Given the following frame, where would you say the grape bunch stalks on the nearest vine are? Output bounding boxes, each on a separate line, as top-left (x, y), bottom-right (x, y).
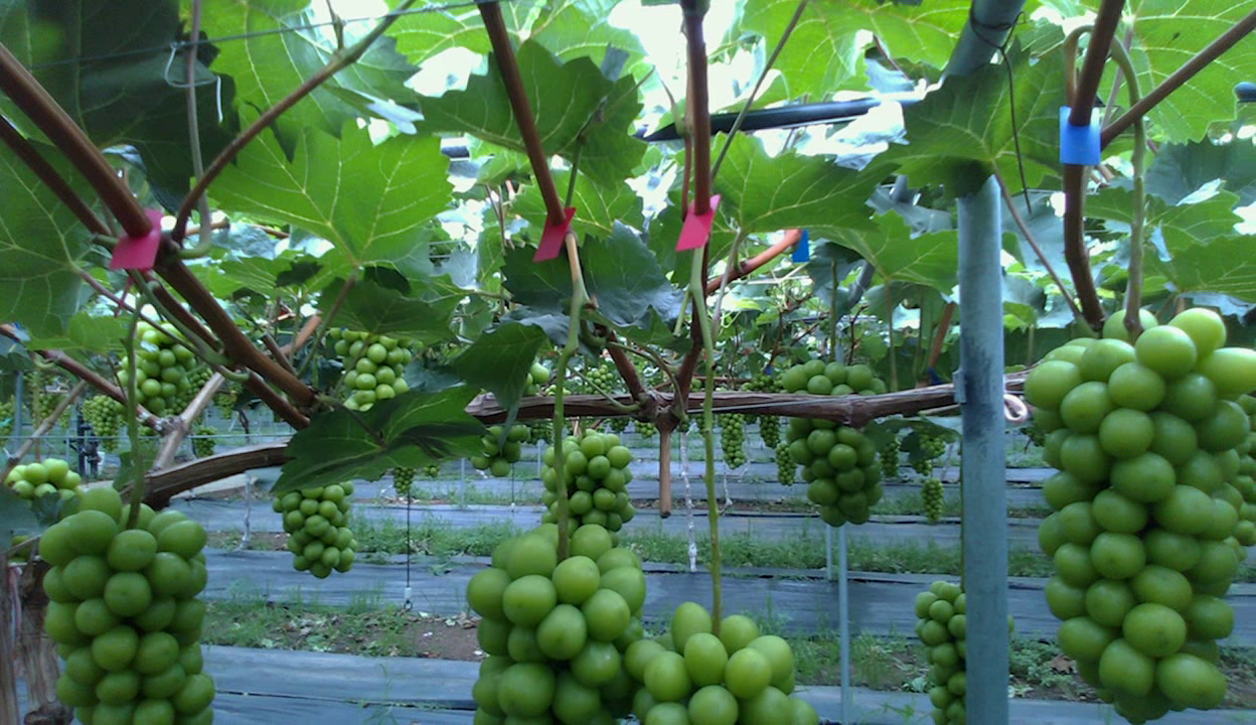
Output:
top-left (1109, 36), bottom-right (1150, 347)
top-left (554, 238), bottom-right (590, 564)
top-left (120, 294), bottom-right (152, 529)
top-left (690, 245), bottom-right (722, 635)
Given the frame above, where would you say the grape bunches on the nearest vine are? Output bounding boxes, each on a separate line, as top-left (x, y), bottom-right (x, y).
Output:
top-left (39, 486), bottom-right (216, 724)
top-left (1023, 306), bottom-right (1255, 721)
top-left (623, 601), bottom-right (818, 724)
top-left (466, 525), bottom-right (648, 724)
